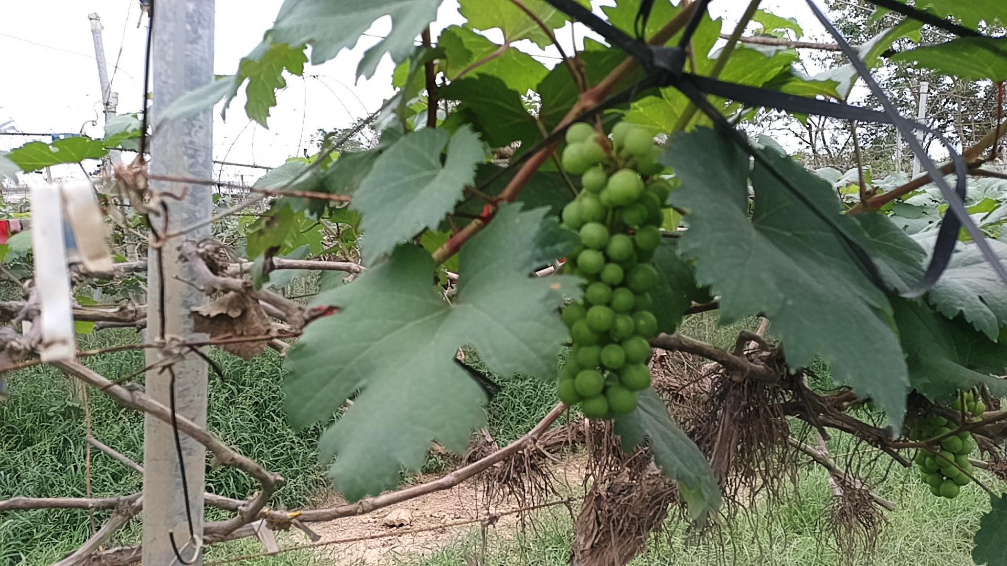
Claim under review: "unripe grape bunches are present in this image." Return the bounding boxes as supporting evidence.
[906,390,985,498]
[559,124,669,418]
